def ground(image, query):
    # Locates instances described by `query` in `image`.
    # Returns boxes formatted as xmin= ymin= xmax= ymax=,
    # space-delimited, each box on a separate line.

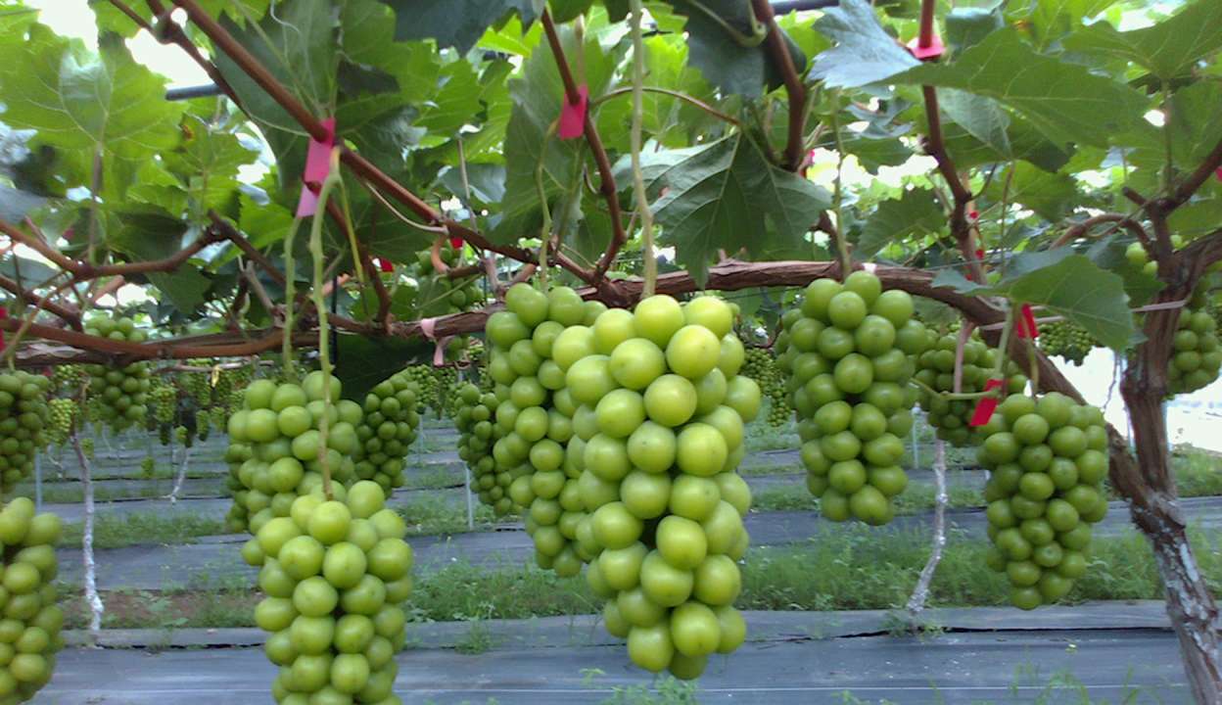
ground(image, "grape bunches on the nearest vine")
xmin=783 ymin=270 xmax=927 ymax=524
xmin=551 ymin=295 xmax=760 ymax=681
xmin=486 ymin=281 xmax=607 ymax=577
xmin=0 ymin=497 xmax=66 ymax=703
xmin=226 ymin=370 xmax=362 ymax=533
xmin=976 ymin=392 xmax=1109 ymax=610
xmin=254 ymin=479 xmax=412 ymax=703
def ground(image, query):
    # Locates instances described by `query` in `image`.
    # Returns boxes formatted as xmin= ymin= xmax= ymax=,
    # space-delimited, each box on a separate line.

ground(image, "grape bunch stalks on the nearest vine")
xmin=630 ymin=3 xmax=656 ymax=298
xmin=827 ymin=88 xmax=852 ymax=280
xmin=1014 ymin=307 xmax=1040 ymax=399
xmin=535 ymin=115 xmax=562 ymax=292
xmin=283 ymin=215 xmax=302 ymax=386
xmin=307 ymin=146 xmax=342 ymax=499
